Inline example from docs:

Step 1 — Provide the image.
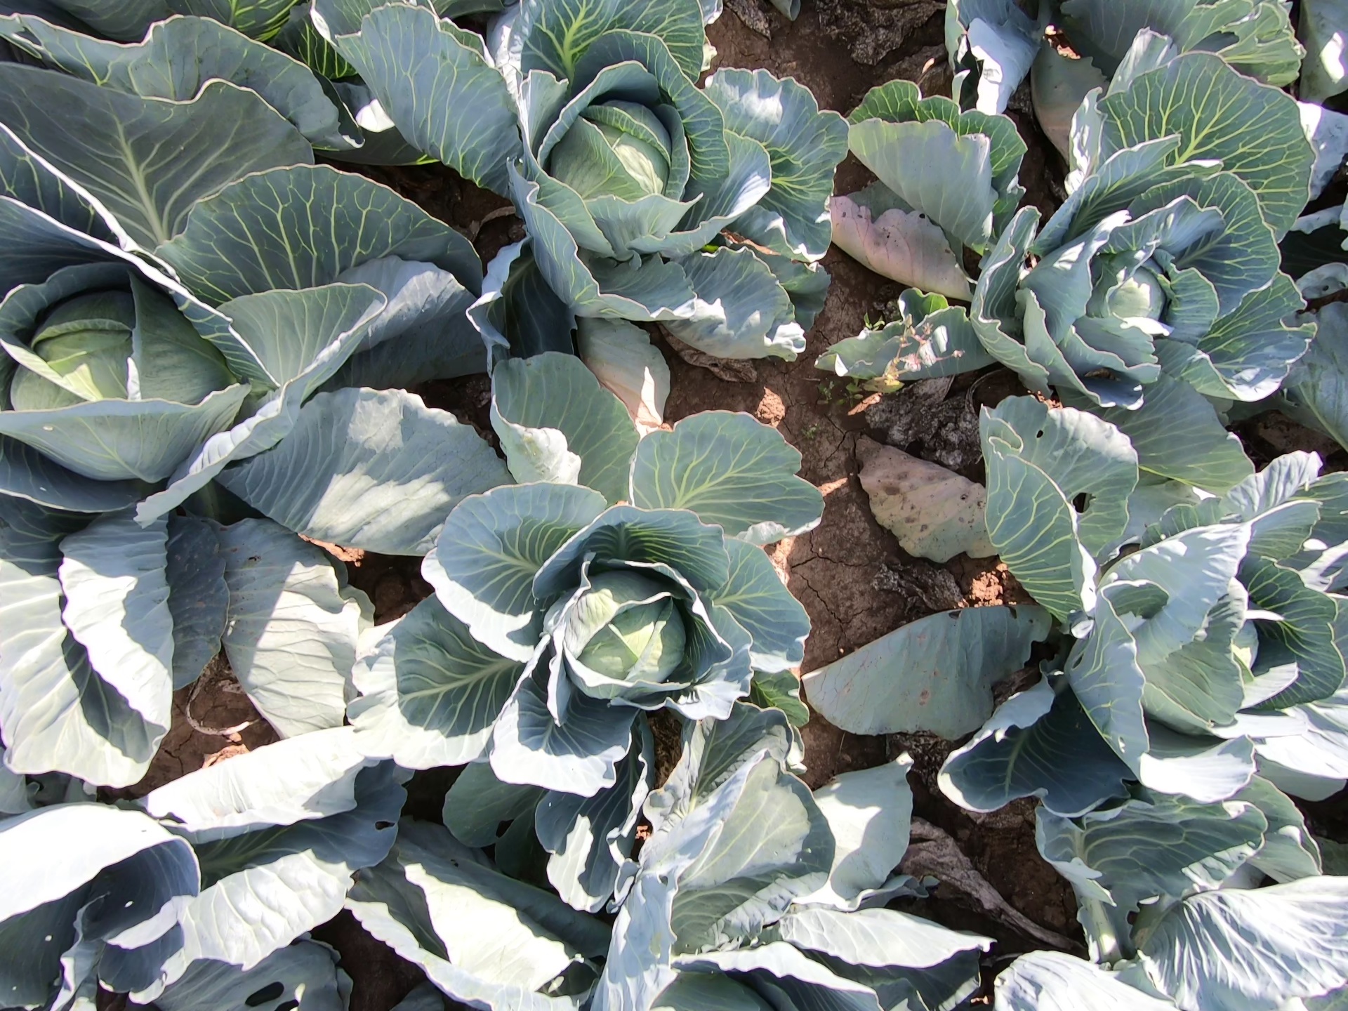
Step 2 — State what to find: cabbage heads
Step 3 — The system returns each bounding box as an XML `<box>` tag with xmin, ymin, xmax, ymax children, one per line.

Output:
<box><xmin>1088</xmin><ymin>246</ymin><xmax>1168</xmax><ymax>333</ymax></box>
<box><xmin>558</xmin><ymin>567</ymin><xmax>687</xmax><ymax>692</ymax></box>
<box><xmin>1142</xmin><ymin>588</ymin><xmax>1256</xmax><ymax>682</ymax></box>
<box><xmin>549</xmin><ymin>102</ymin><xmax>674</xmax><ymax>223</ymax></box>
<box><xmin>9</xmin><ymin>295</ymin><xmax>203</xmax><ymax>451</ymax></box>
